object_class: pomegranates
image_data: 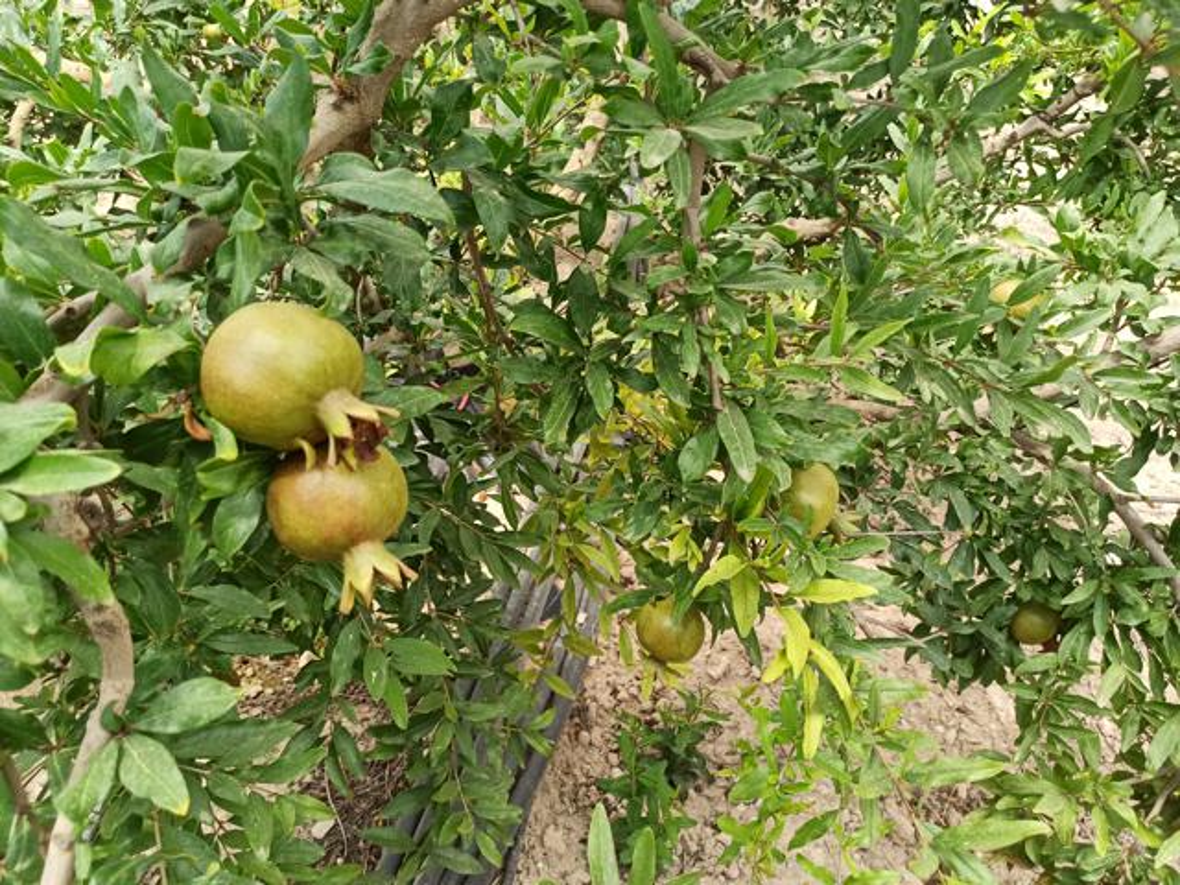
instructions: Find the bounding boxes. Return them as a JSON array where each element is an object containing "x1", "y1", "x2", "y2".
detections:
[
  {"x1": 634, "y1": 599, "x2": 706, "y2": 667},
  {"x1": 199, "y1": 301, "x2": 402, "y2": 472},
  {"x1": 264, "y1": 441, "x2": 419, "y2": 618},
  {"x1": 988, "y1": 278, "x2": 1045, "y2": 321},
  {"x1": 1010, "y1": 603, "x2": 1062, "y2": 655},
  {"x1": 782, "y1": 463, "x2": 841, "y2": 538}
]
